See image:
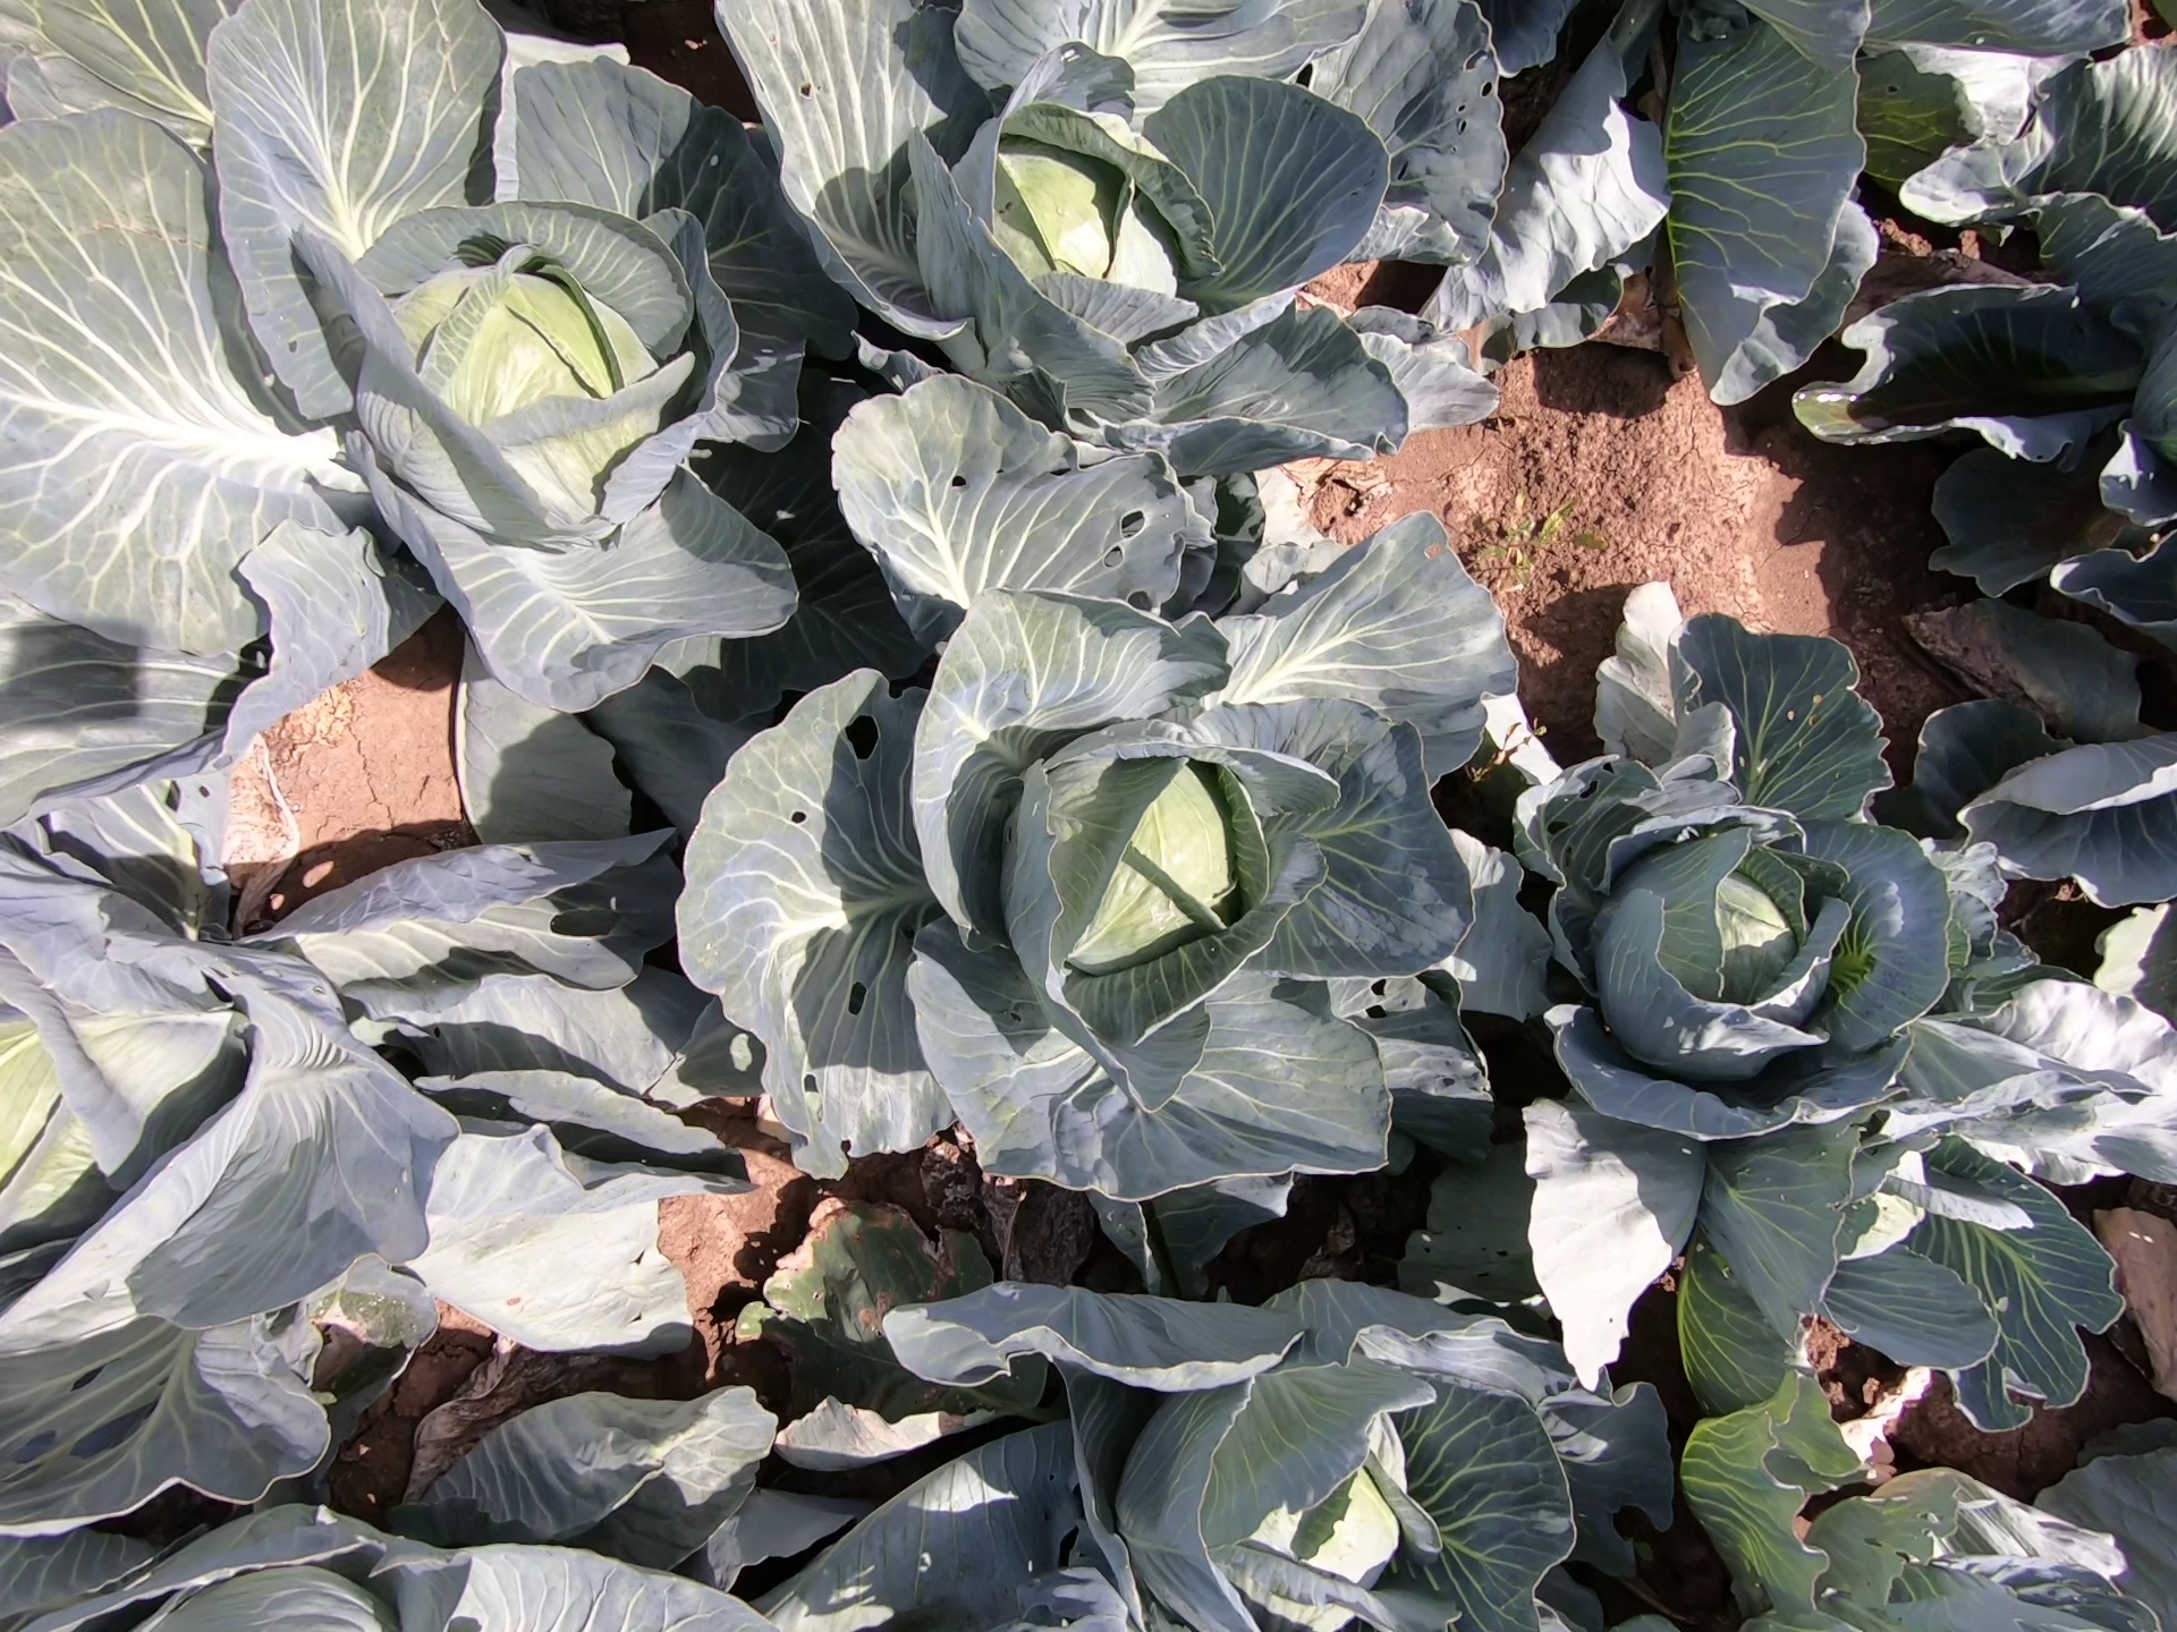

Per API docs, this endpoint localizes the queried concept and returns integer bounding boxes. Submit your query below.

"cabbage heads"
[929,104,1183,363]
[351,258,669,546]
[1153,1355,1409,1630]
[2,958,243,1240]
[1608,853,1823,1074]
[1011,731,1259,976]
